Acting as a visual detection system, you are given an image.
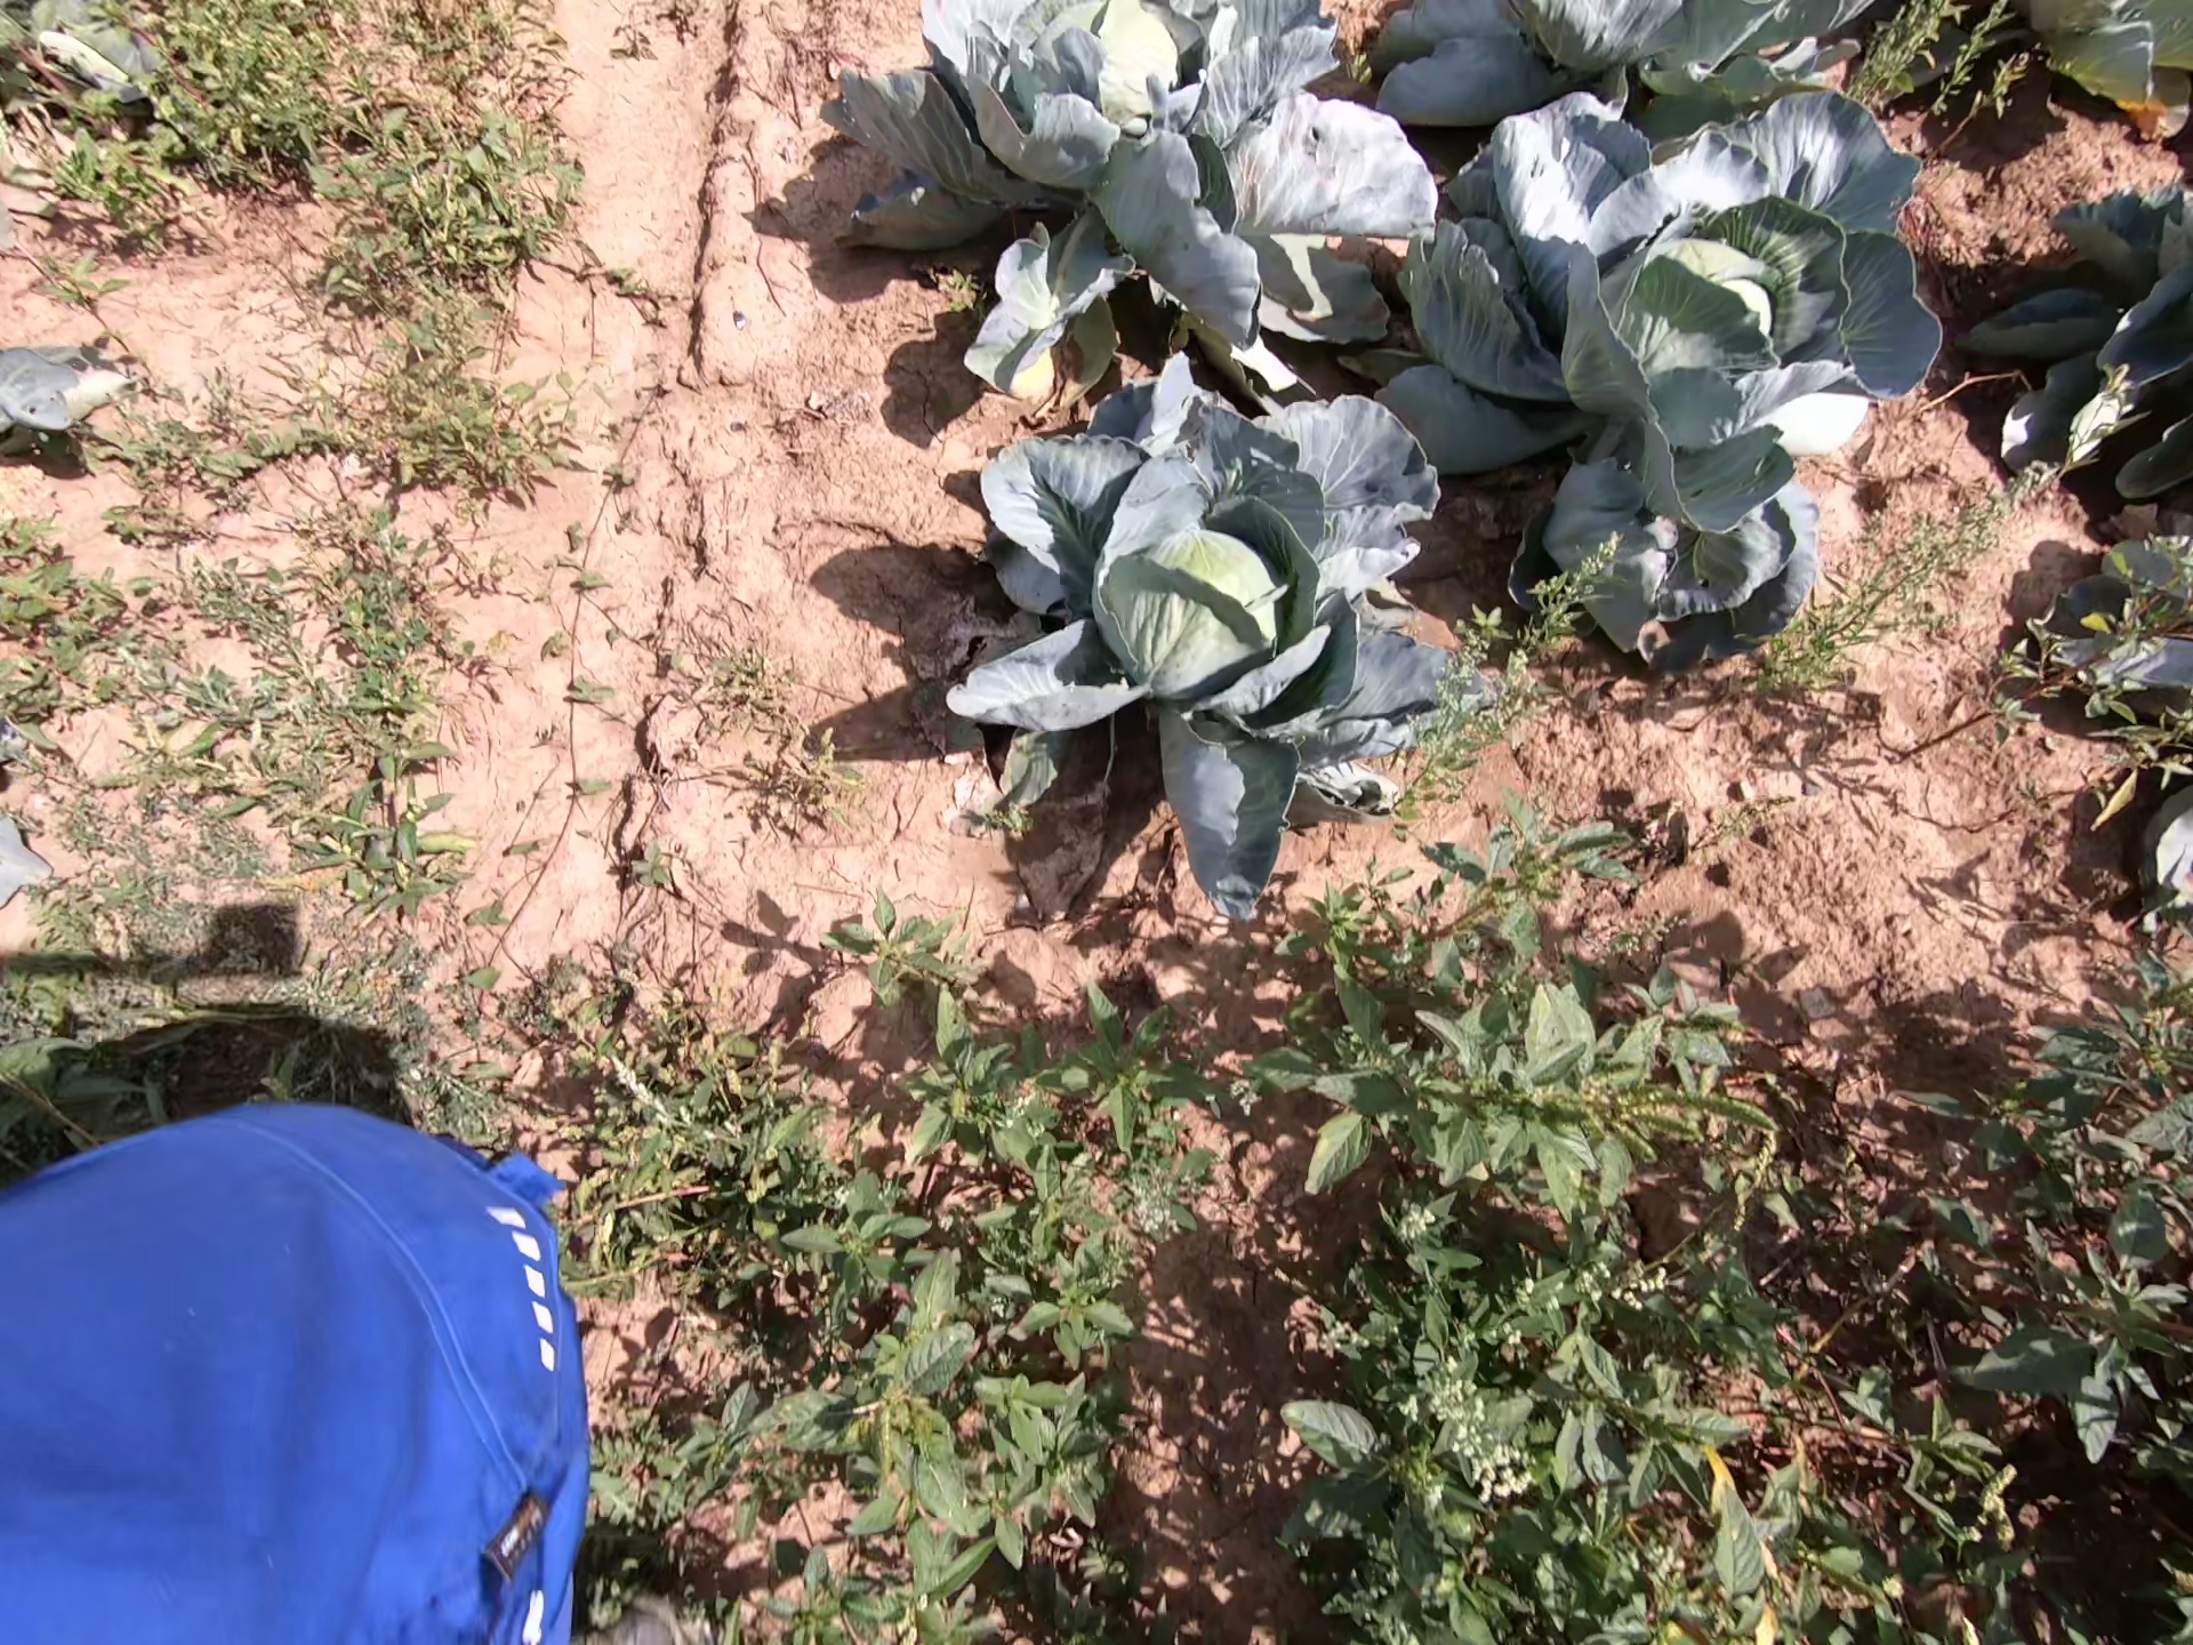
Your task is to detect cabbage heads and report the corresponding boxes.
[1614,234,1773,384]
[1114,531,1286,705]
[1028,1,1183,139]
